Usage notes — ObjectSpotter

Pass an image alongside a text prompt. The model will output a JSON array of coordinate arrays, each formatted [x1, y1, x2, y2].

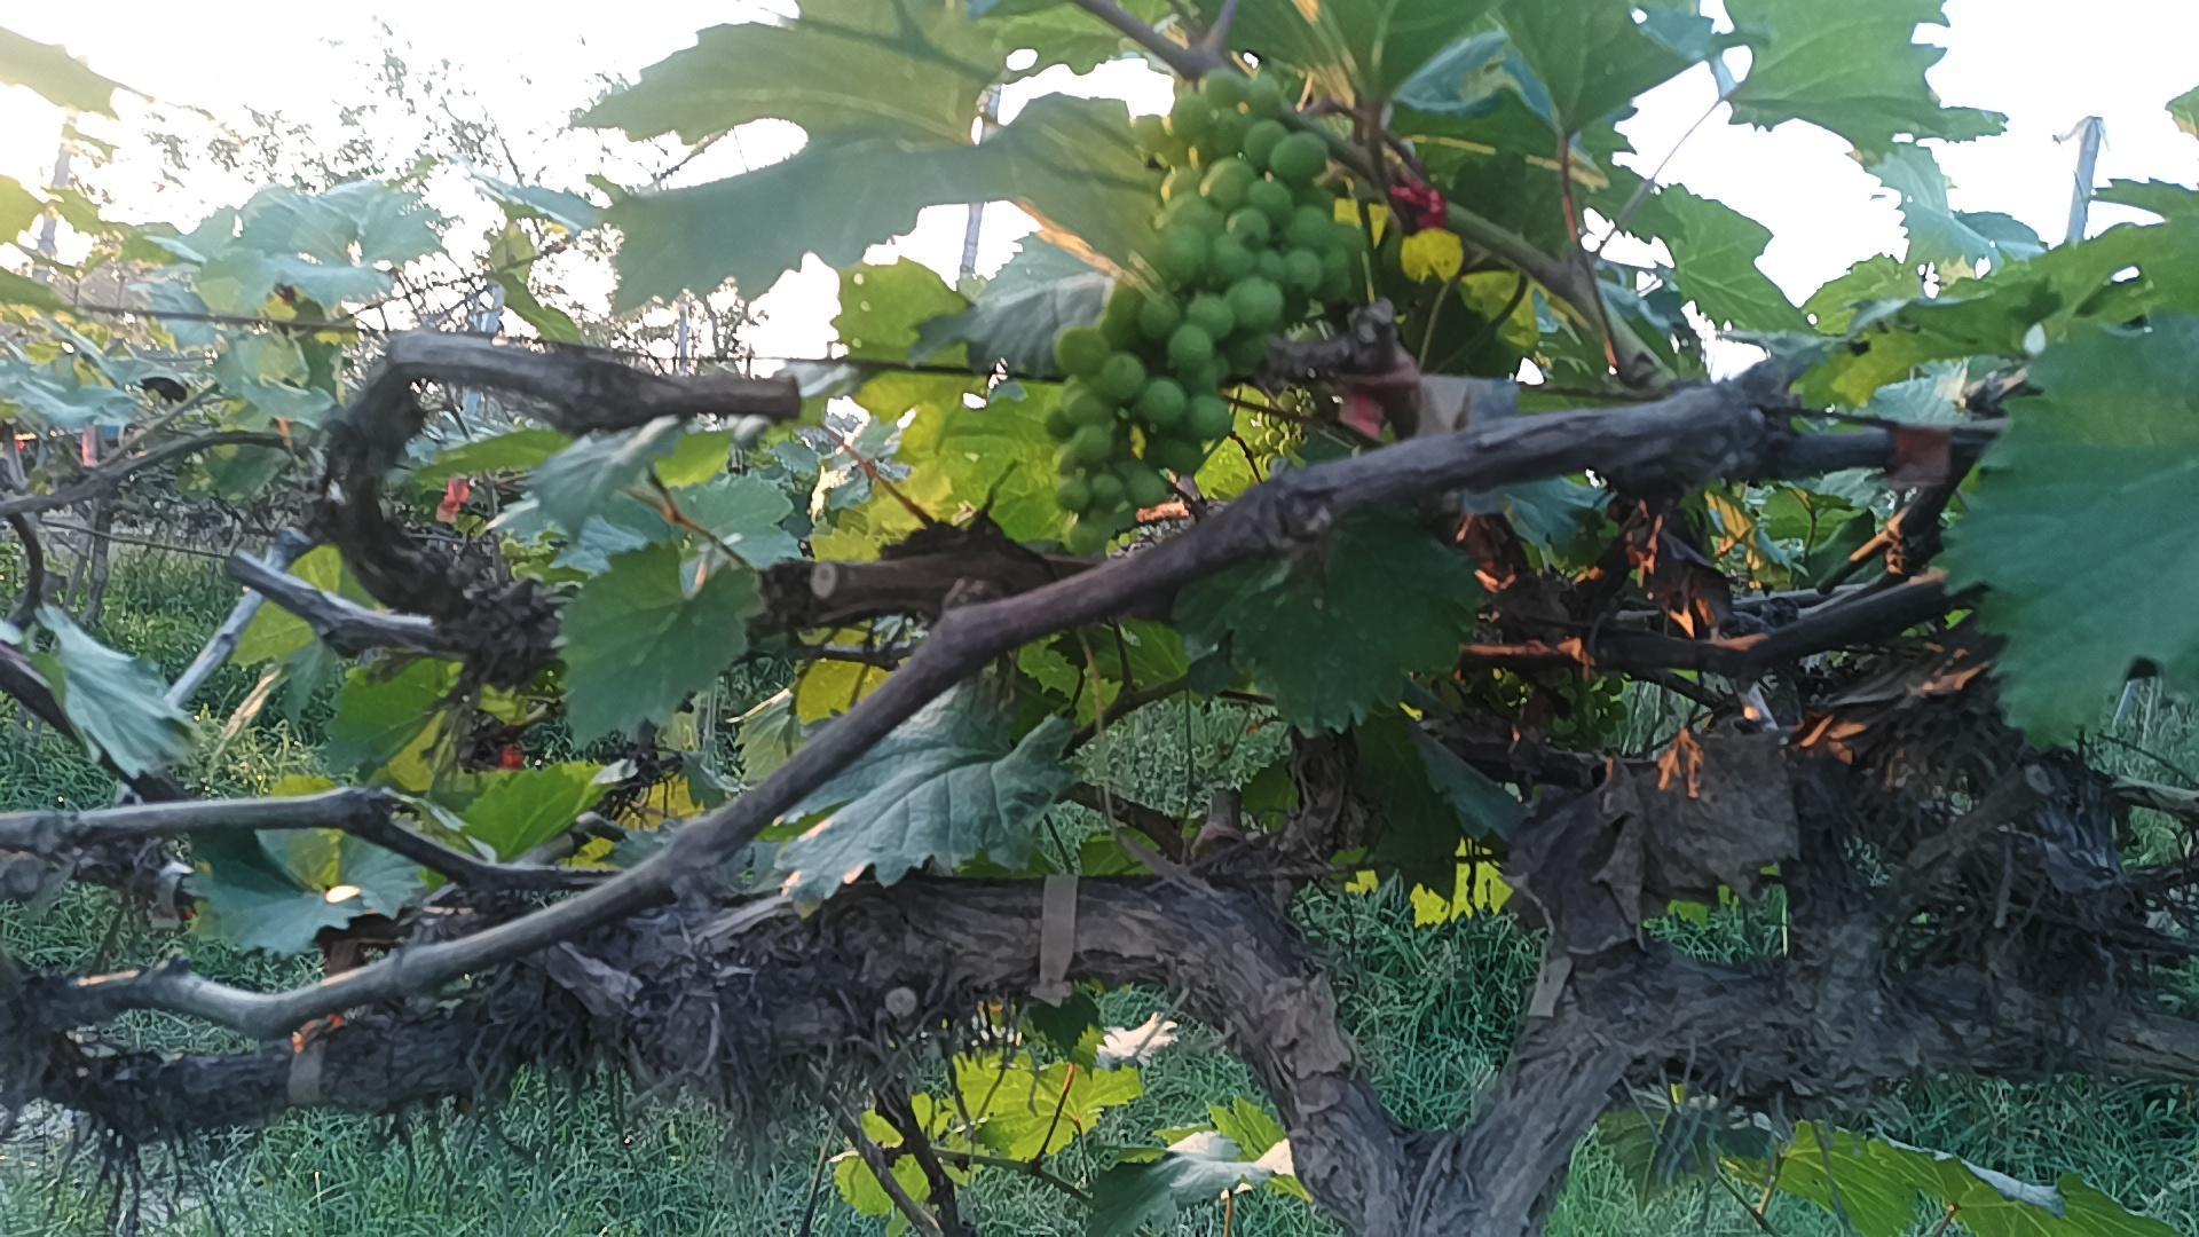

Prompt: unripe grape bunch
[[1042, 70, 1365, 551]]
